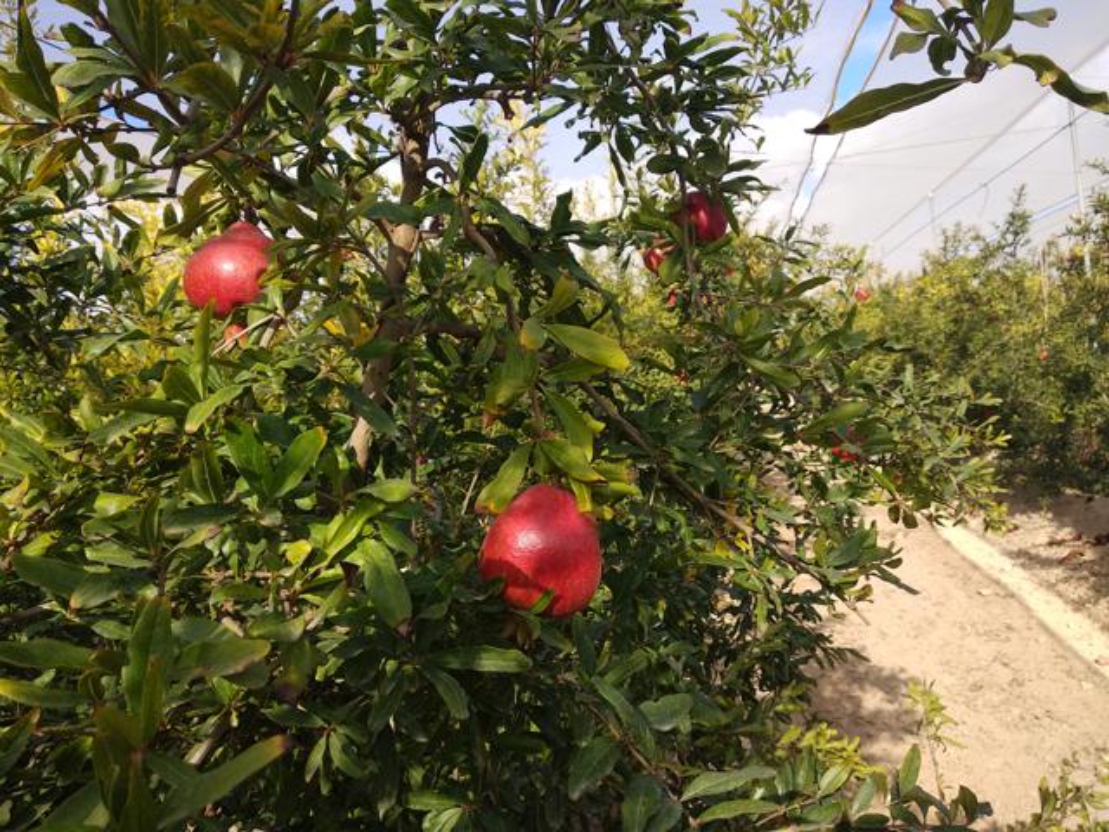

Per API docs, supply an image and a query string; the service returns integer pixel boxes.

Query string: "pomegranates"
[671,191,728,243]
[184,218,274,321]
[478,482,603,619]
[643,246,665,274]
